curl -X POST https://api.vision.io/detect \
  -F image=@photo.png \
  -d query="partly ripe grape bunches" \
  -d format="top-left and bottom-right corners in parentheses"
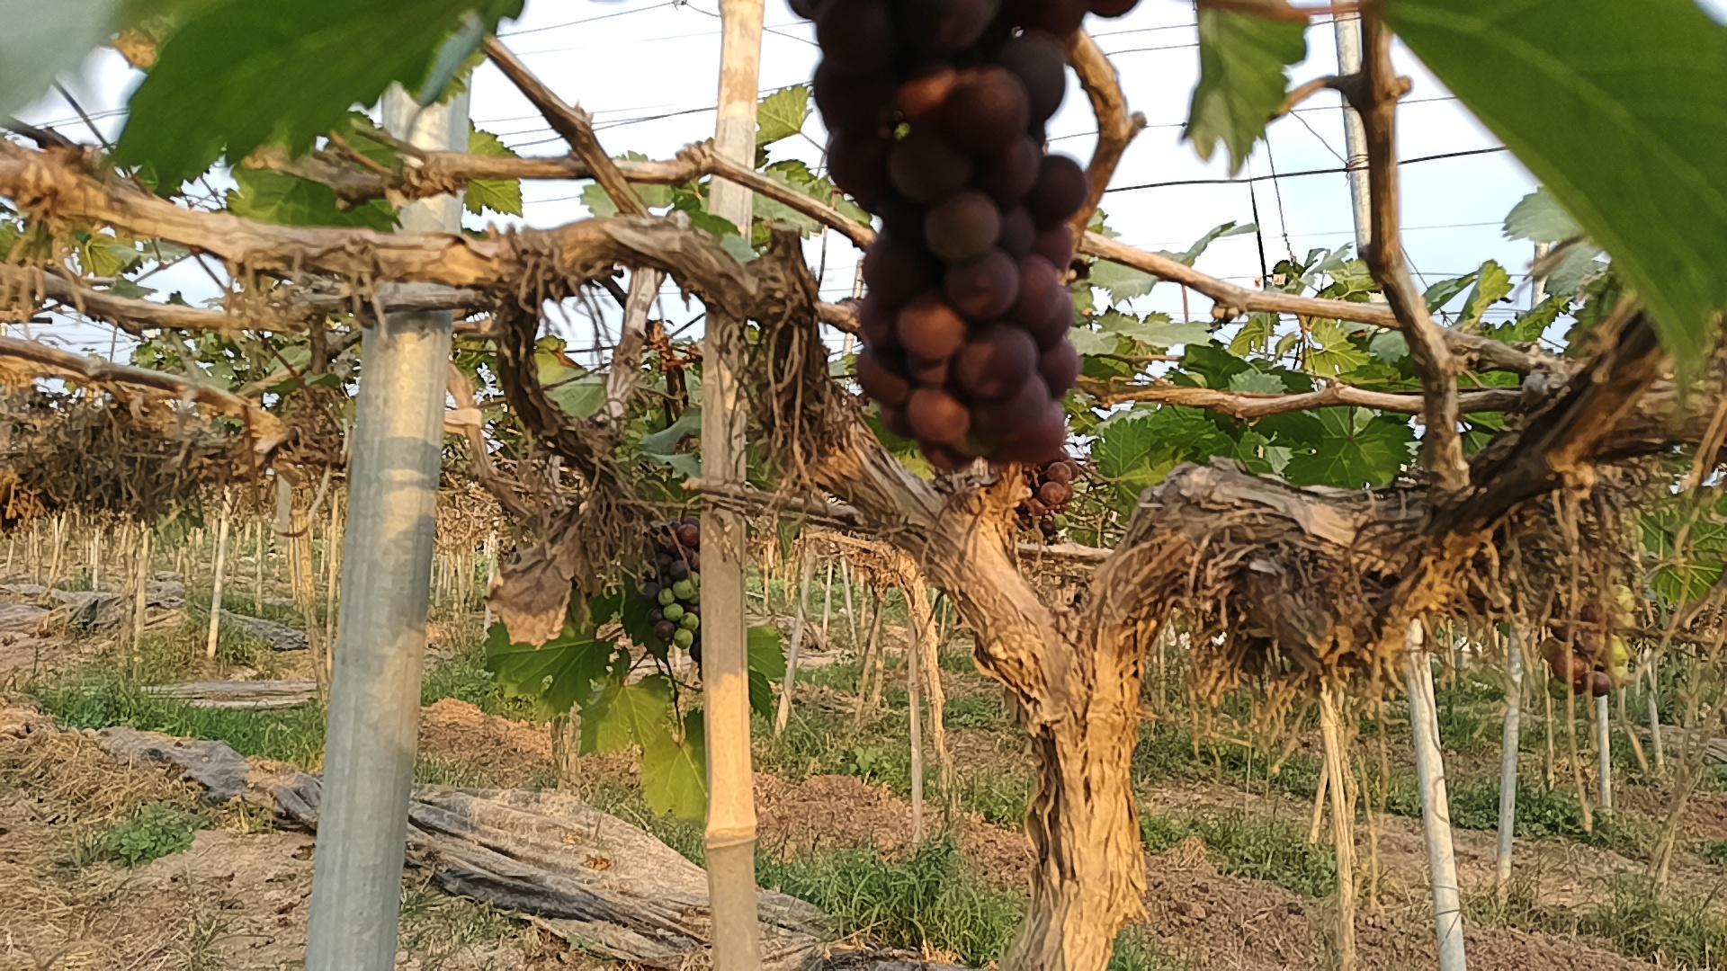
top-left (1015, 457), bottom-right (1079, 539)
top-left (643, 519), bottom-right (701, 664)
top-left (1535, 574), bottom-right (1635, 696)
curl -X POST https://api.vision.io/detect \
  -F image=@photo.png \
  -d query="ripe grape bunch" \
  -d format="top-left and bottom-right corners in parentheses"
top-left (787, 0), bottom-right (1139, 468)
